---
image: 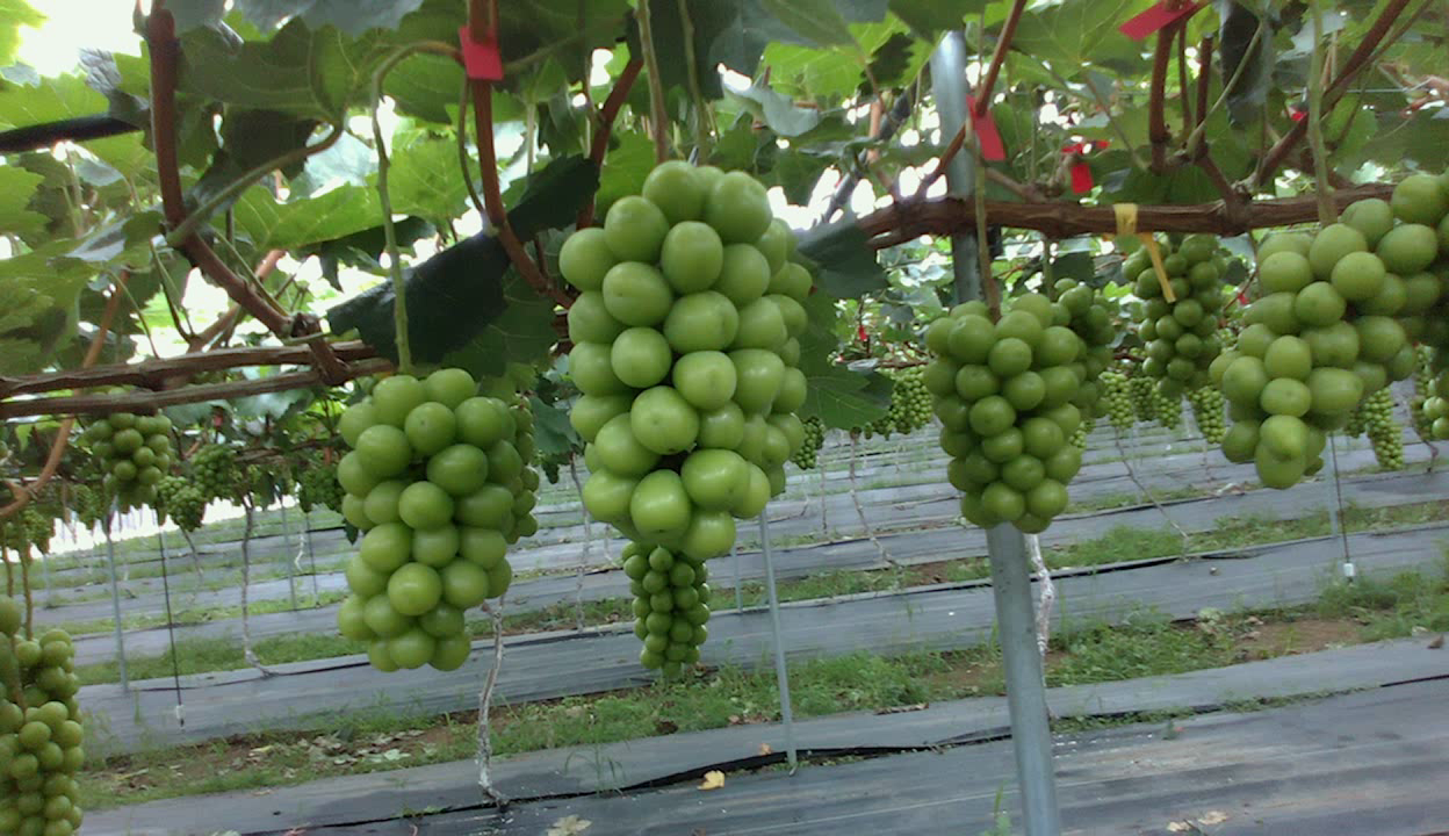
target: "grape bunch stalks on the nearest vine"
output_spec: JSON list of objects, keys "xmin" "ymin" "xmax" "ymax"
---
[
  {"xmin": 1306, "ymin": 0, "xmax": 1336, "ymax": 223},
  {"xmin": 964, "ymin": 121, "xmax": 1002, "ymax": 320},
  {"xmin": 369, "ymin": 41, "xmax": 460, "ymax": 373},
  {"xmin": 635, "ymin": 0, "xmax": 668, "ymax": 163}
]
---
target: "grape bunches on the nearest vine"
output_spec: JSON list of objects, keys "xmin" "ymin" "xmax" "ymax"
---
[
  {"xmin": 558, "ymin": 160, "xmax": 814, "ymax": 558},
  {"xmin": 1209, "ymin": 199, "xmax": 1442, "ymax": 491},
  {"xmin": 923, "ymin": 293, "xmax": 1084, "ymax": 534},
  {"xmin": 337, "ymin": 368, "xmax": 521, "ymax": 672}
]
